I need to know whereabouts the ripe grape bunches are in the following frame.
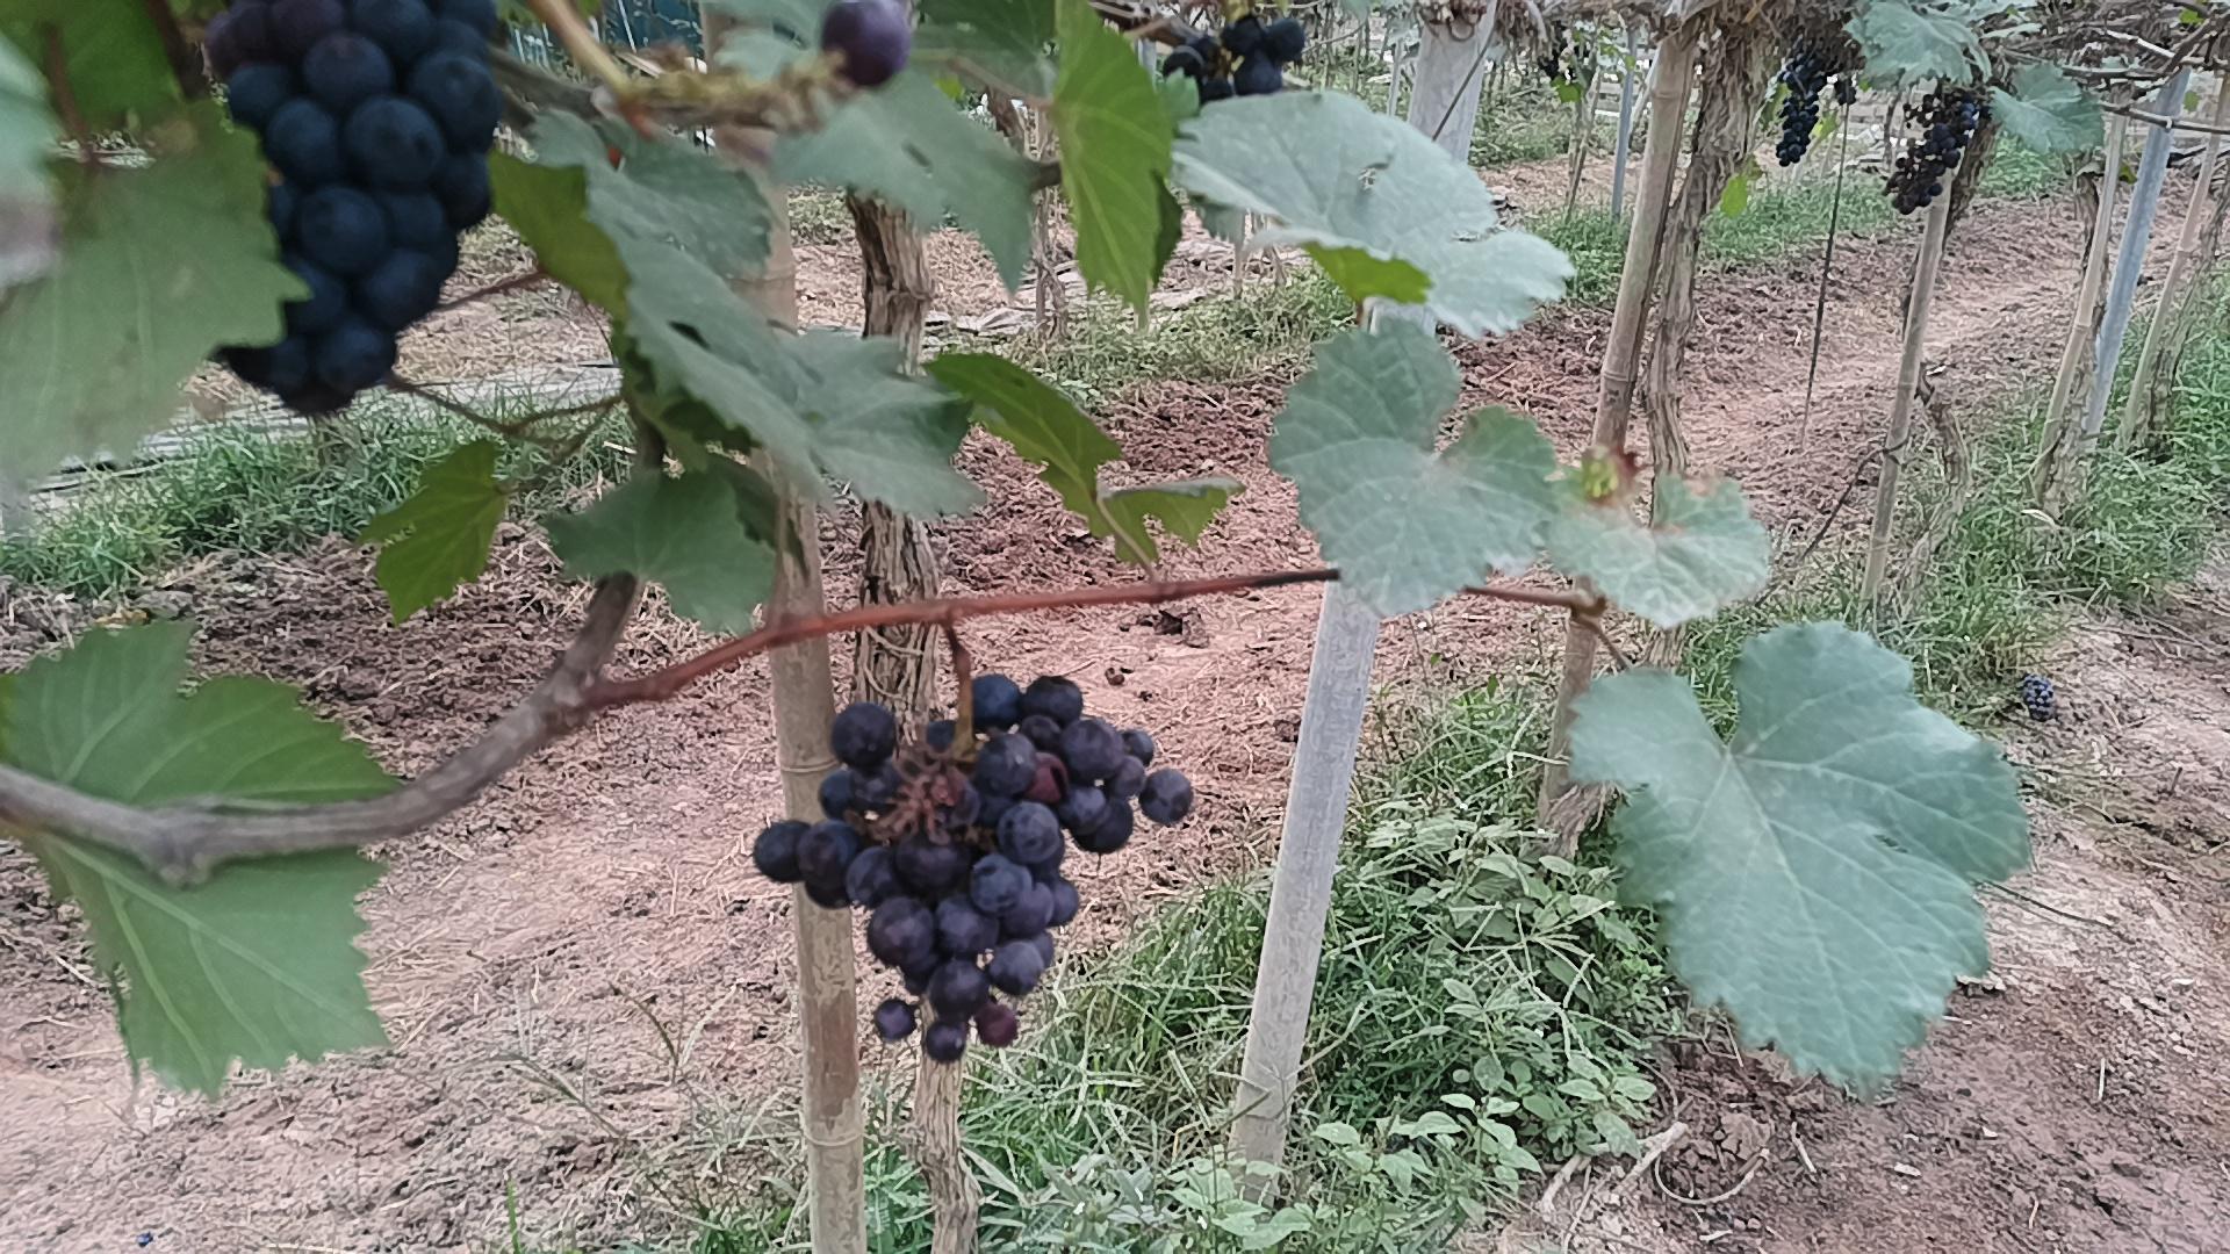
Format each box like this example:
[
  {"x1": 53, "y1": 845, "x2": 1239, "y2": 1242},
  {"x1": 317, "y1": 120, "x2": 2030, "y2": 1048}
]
[
  {"x1": 1884, "y1": 88, "x2": 1991, "y2": 214},
  {"x1": 1775, "y1": 50, "x2": 1854, "y2": 166},
  {"x1": 753, "y1": 675, "x2": 1190, "y2": 1062},
  {"x1": 1135, "y1": 0, "x2": 1308, "y2": 103},
  {"x1": 210, "y1": 0, "x2": 502, "y2": 413},
  {"x1": 820, "y1": 0, "x2": 912, "y2": 88}
]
